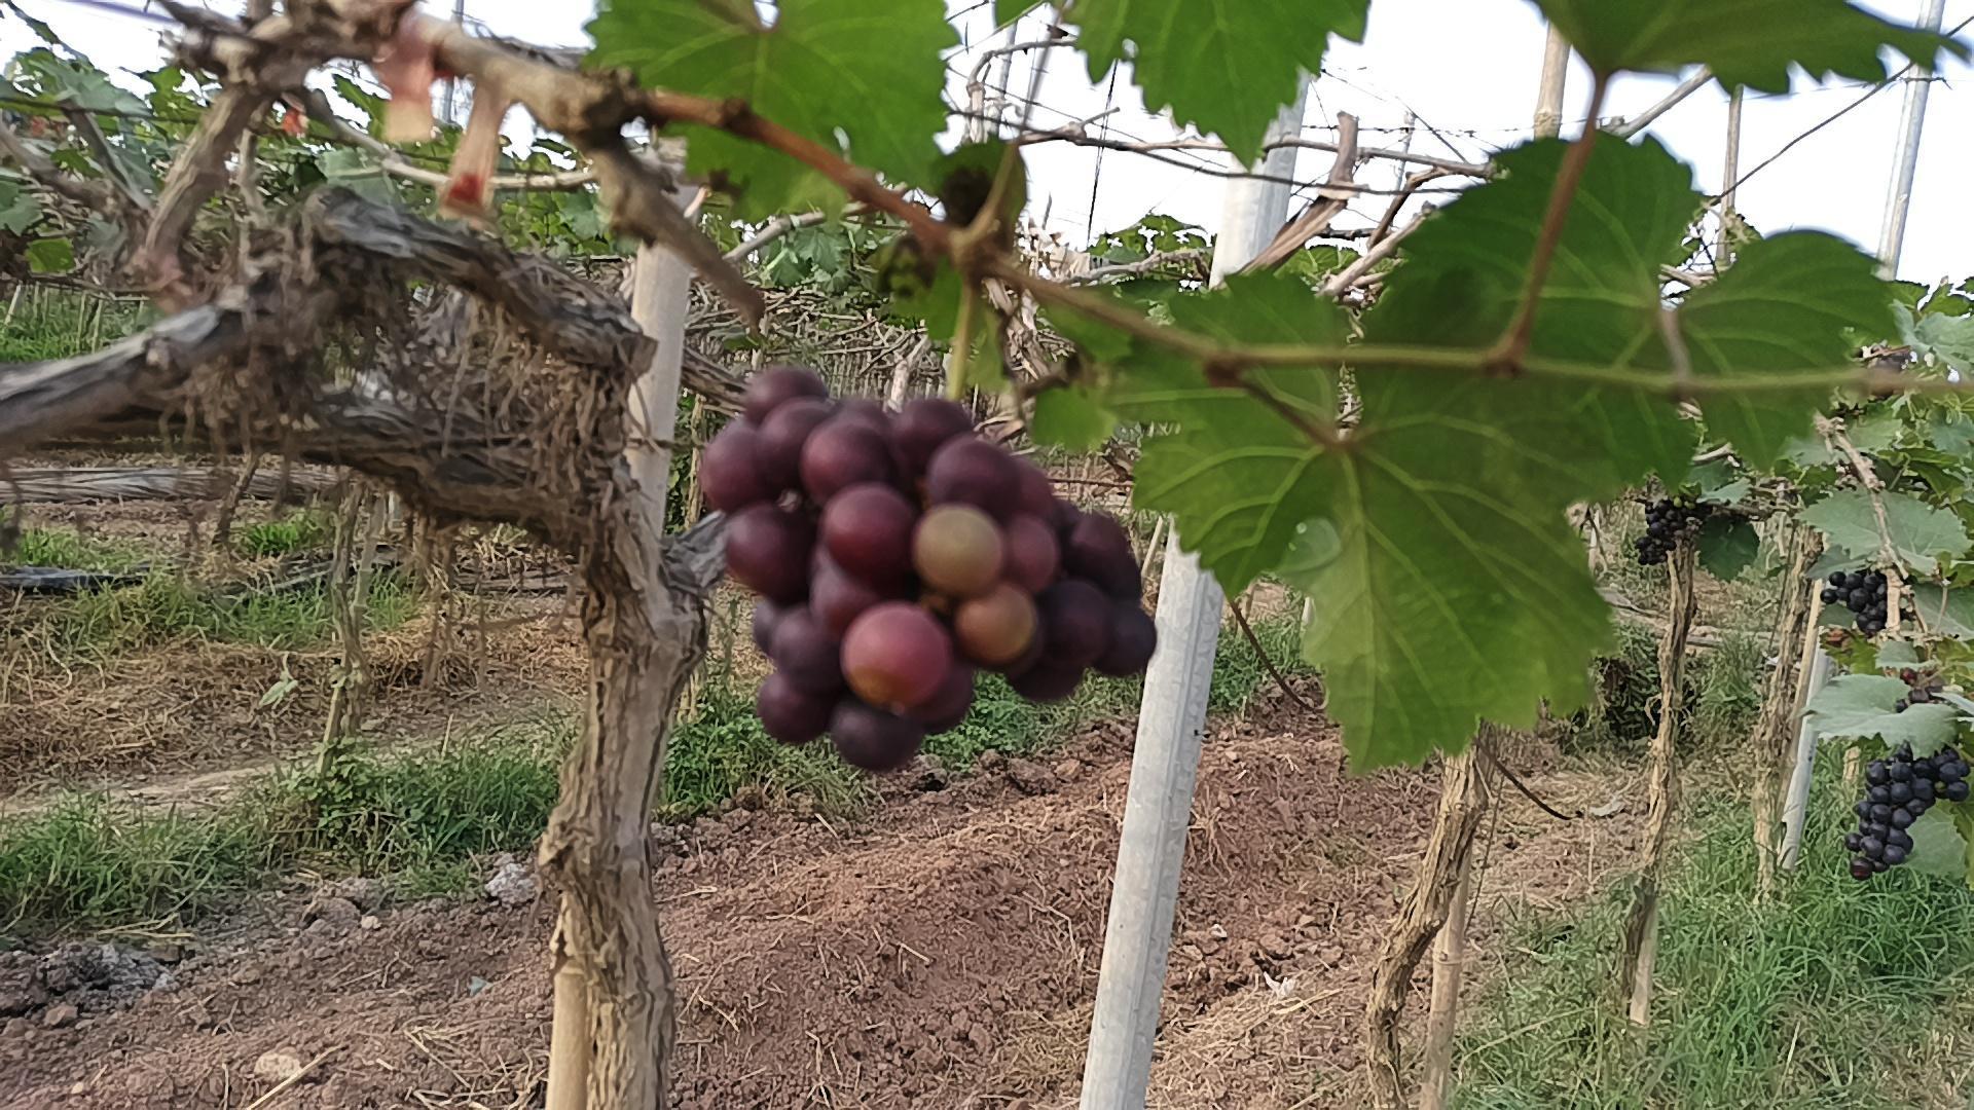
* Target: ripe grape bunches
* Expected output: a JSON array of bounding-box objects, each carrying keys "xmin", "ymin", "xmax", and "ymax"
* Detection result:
[
  {"xmin": 1845, "ymin": 666, "xmax": 1973, "ymax": 879},
  {"xmin": 1821, "ymin": 567, "xmax": 1892, "ymax": 637}
]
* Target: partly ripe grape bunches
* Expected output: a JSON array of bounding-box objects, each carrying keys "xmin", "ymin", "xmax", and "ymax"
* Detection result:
[
  {"xmin": 698, "ymin": 366, "xmax": 1155, "ymax": 770},
  {"xmin": 1634, "ymin": 495, "xmax": 1720, "ymax": 565}
]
